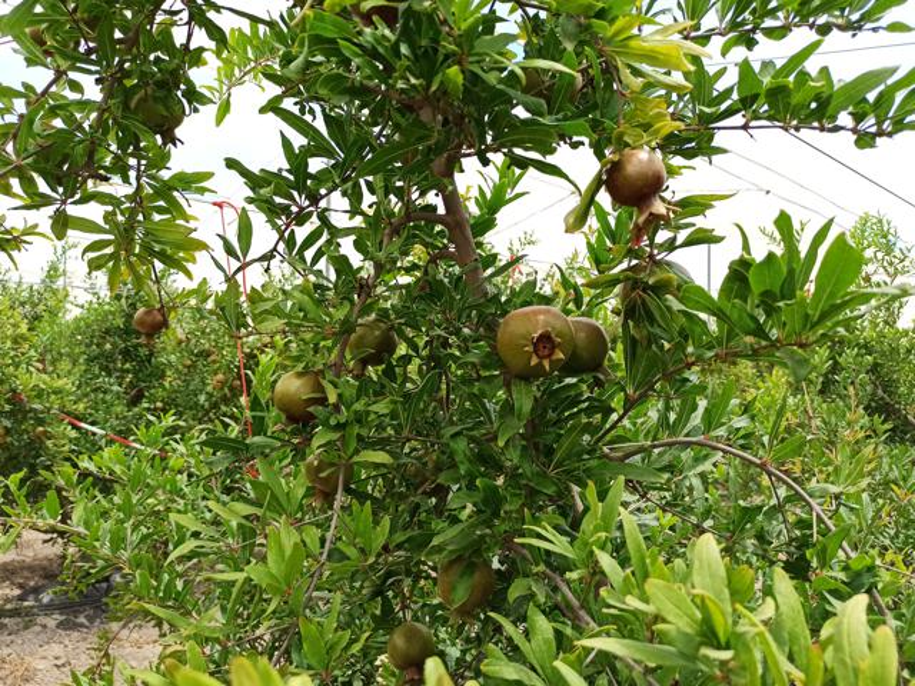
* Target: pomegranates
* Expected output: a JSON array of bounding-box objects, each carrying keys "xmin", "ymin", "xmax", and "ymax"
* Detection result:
[
  {"xmin": 347, "ymin": 317, "xmax": 397, "ymax": 377},
  {"xmin": 496, "ymin": 304, "xmax": 575, "ymax": 379},
  {"xmin": 387, "ymin": 622, "xmax": 436, "ymax": 686},
  {"xmin": 274, "ymin": 370, "xmax": 326, "ymax": 424},
  {"xmin": 305, "ymin": 450, "xmax": 352, "ymax": 513},
  {"xmin": 133, "ymin": 307, "xmax": 166, "ymax": 344},
  {"xmin": 129, "ymin": 84, "xmax": 187, "ymax": 149},
  {"xmin": 559, "ymin": 317, "xmax": 613, "ymax": 379},
  {"xmin": 620, "ymin": 259, "xmax": 693, "ymax": 323},
  {"xmin": 437, "ymin": 559, "xmax": 493, "ymax": 626},
  {"xmin": 605, "ymin": 147, "xmax": 682, "ymax": 237}
]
